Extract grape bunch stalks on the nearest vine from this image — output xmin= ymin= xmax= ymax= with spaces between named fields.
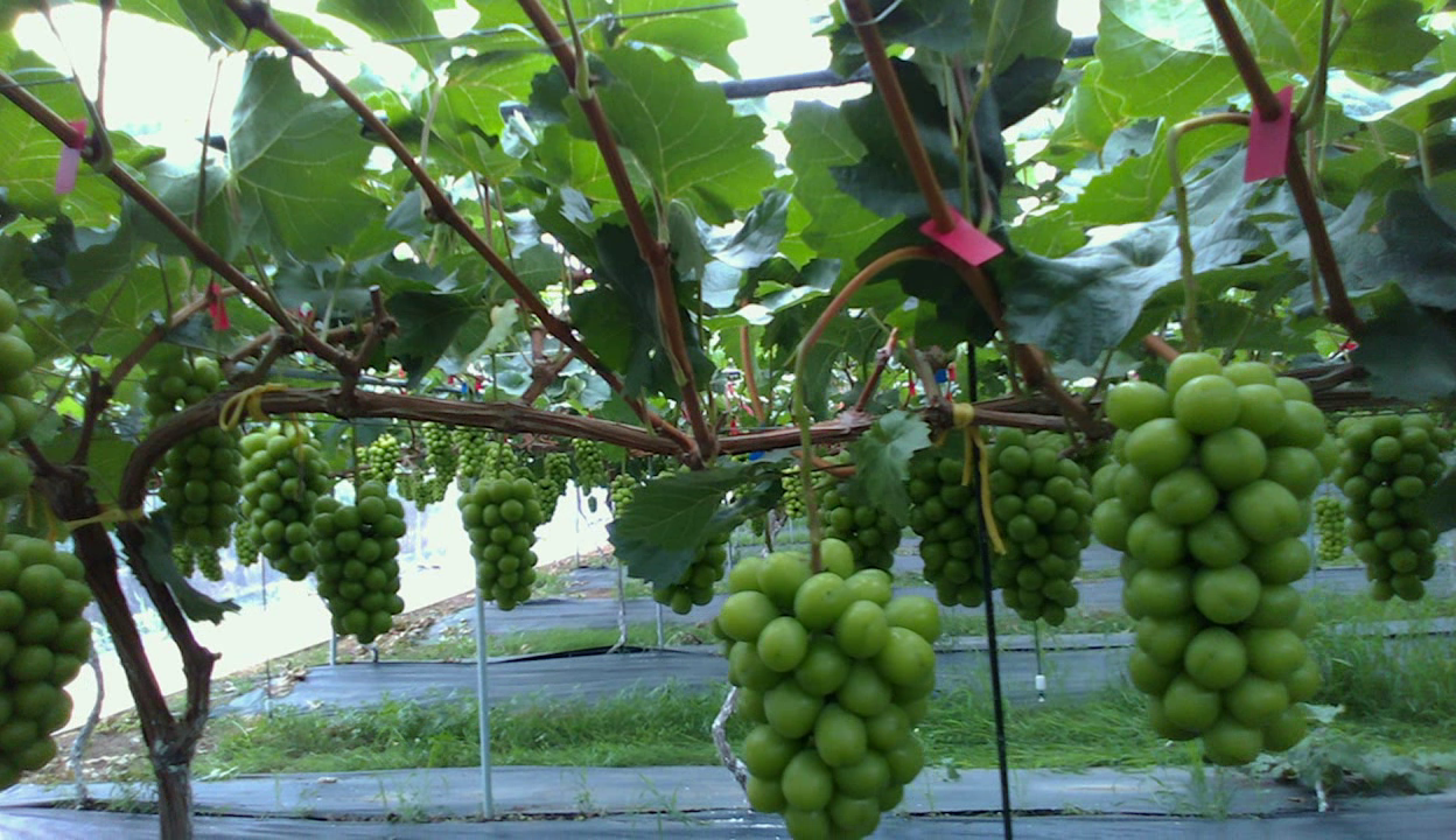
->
xmin=1165 ymin=112 xmax=1252 ymax=350
xmin=792 ymin=245 xmax=951 ymax=568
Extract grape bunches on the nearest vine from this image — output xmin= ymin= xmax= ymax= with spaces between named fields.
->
xmin=714 ymin=539 xmax=943 ymax=839
xmin=0 ymin=290 xmax=37 ymax=499
xmin=0 ymin=531 xmax=90 ymax=790
xmin=1088 ymin=351 xmax=1333 ymax=766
